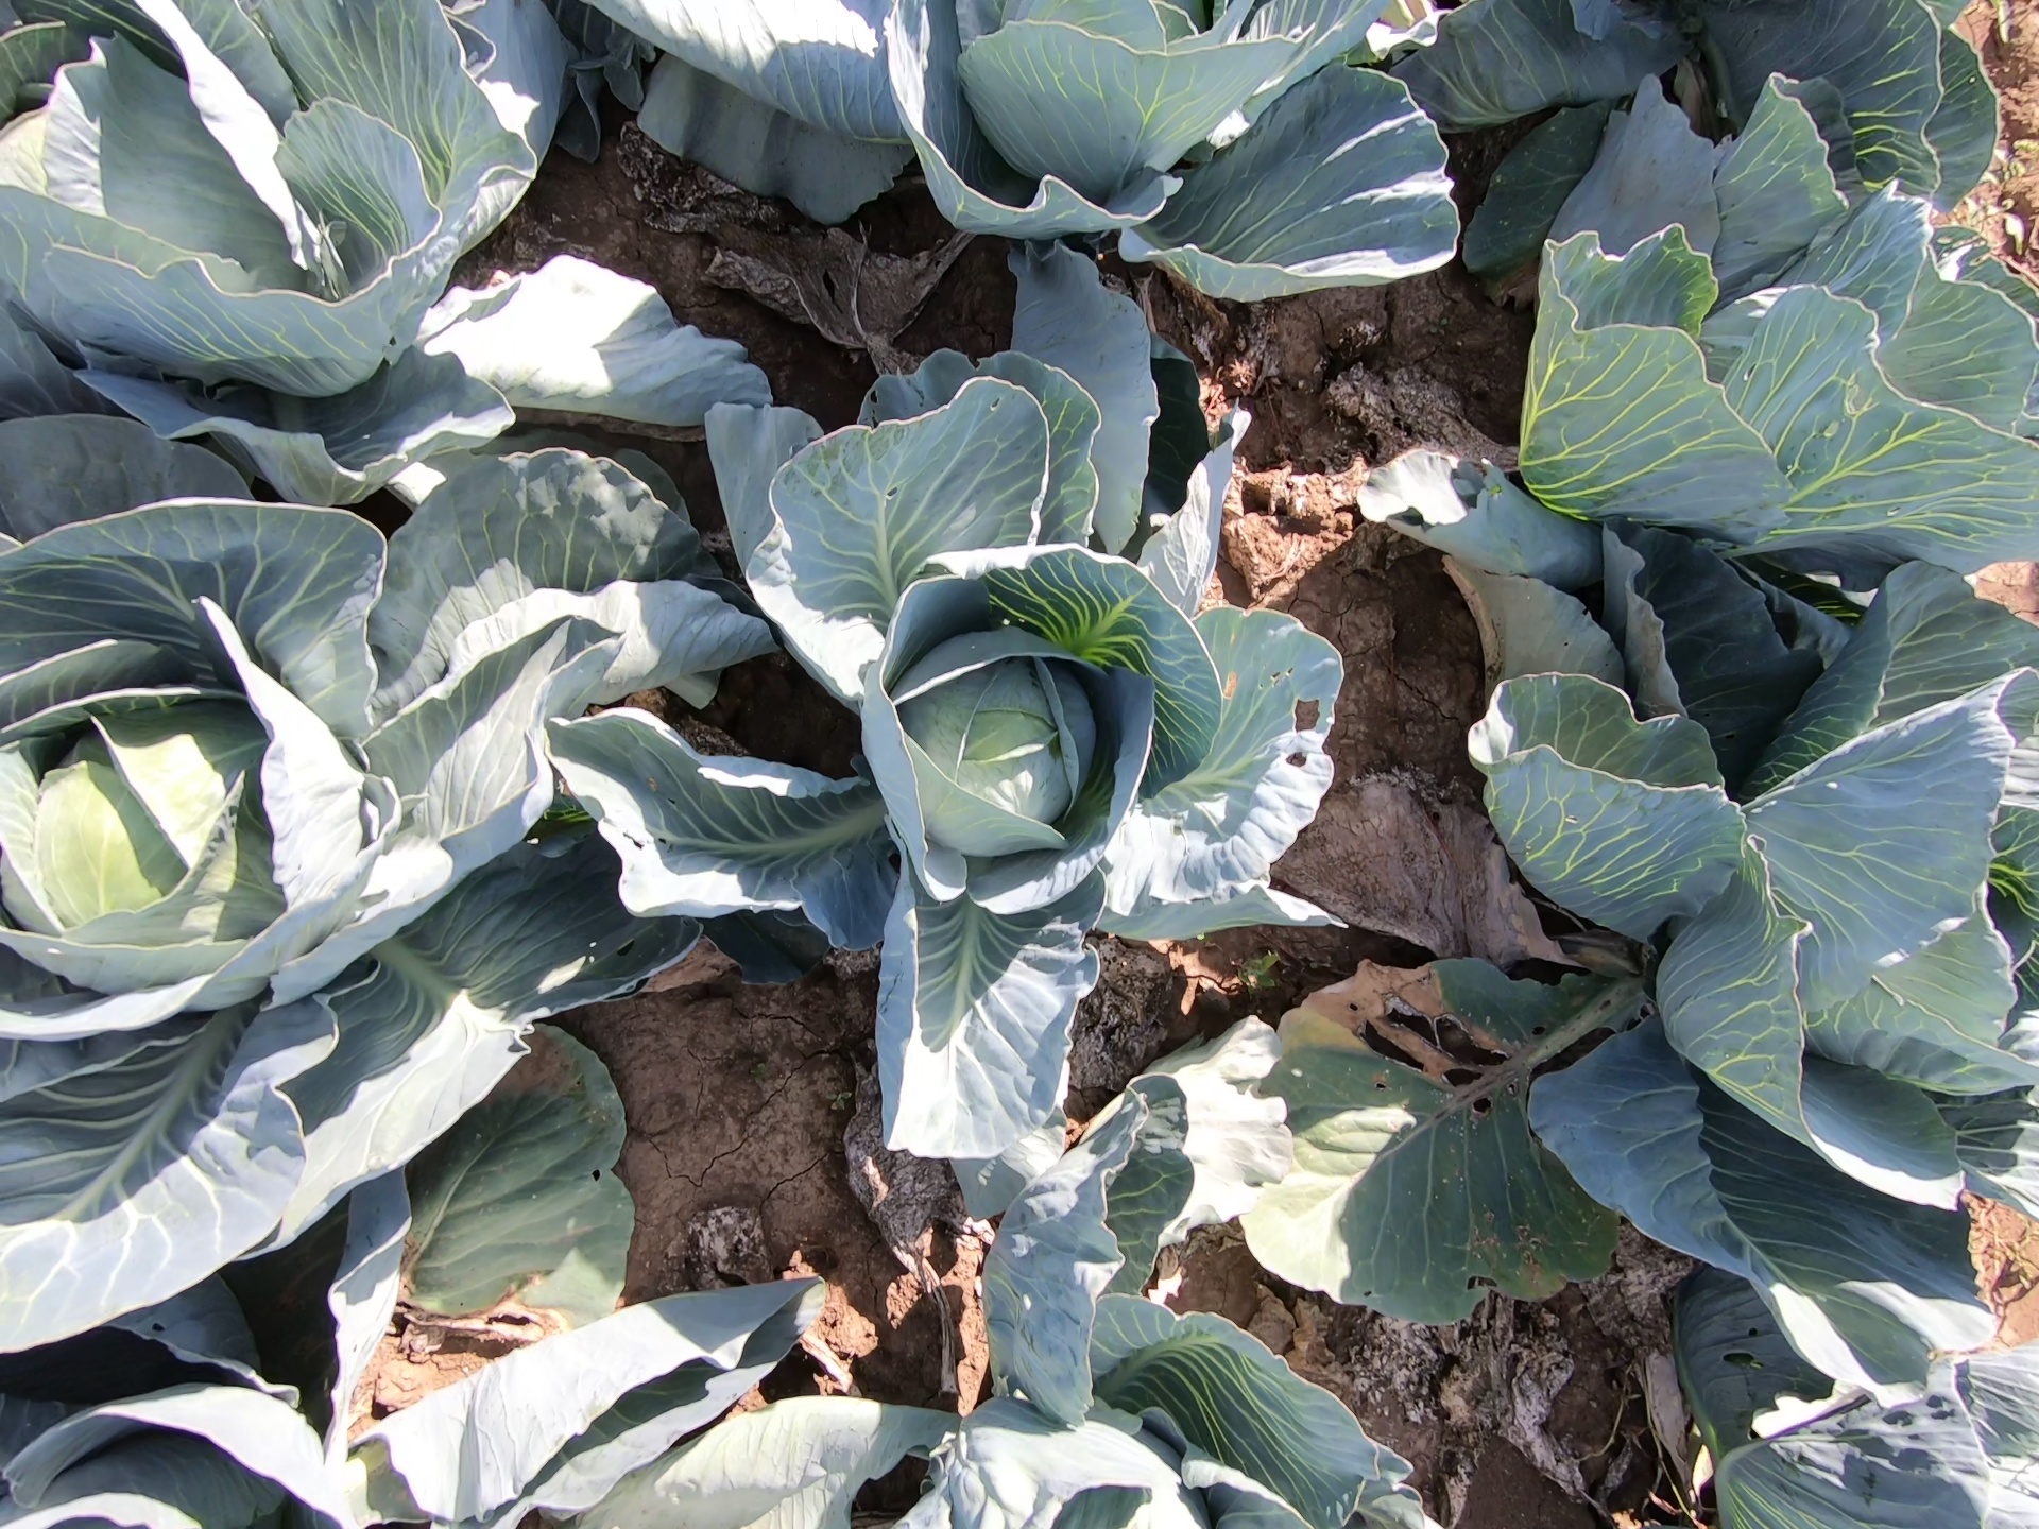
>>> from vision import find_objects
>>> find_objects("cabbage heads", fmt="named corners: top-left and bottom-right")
top-left (1003, 0), bottom-right (1201, 132)
top-left (25, 704), bottom-right (340, 968)
top-left (978, 1424), bottom-right (1205, 1526)
top-left (896, 646), bottom-right (1093, 834)
top-left (3, 97), bottom-right (217, 315)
